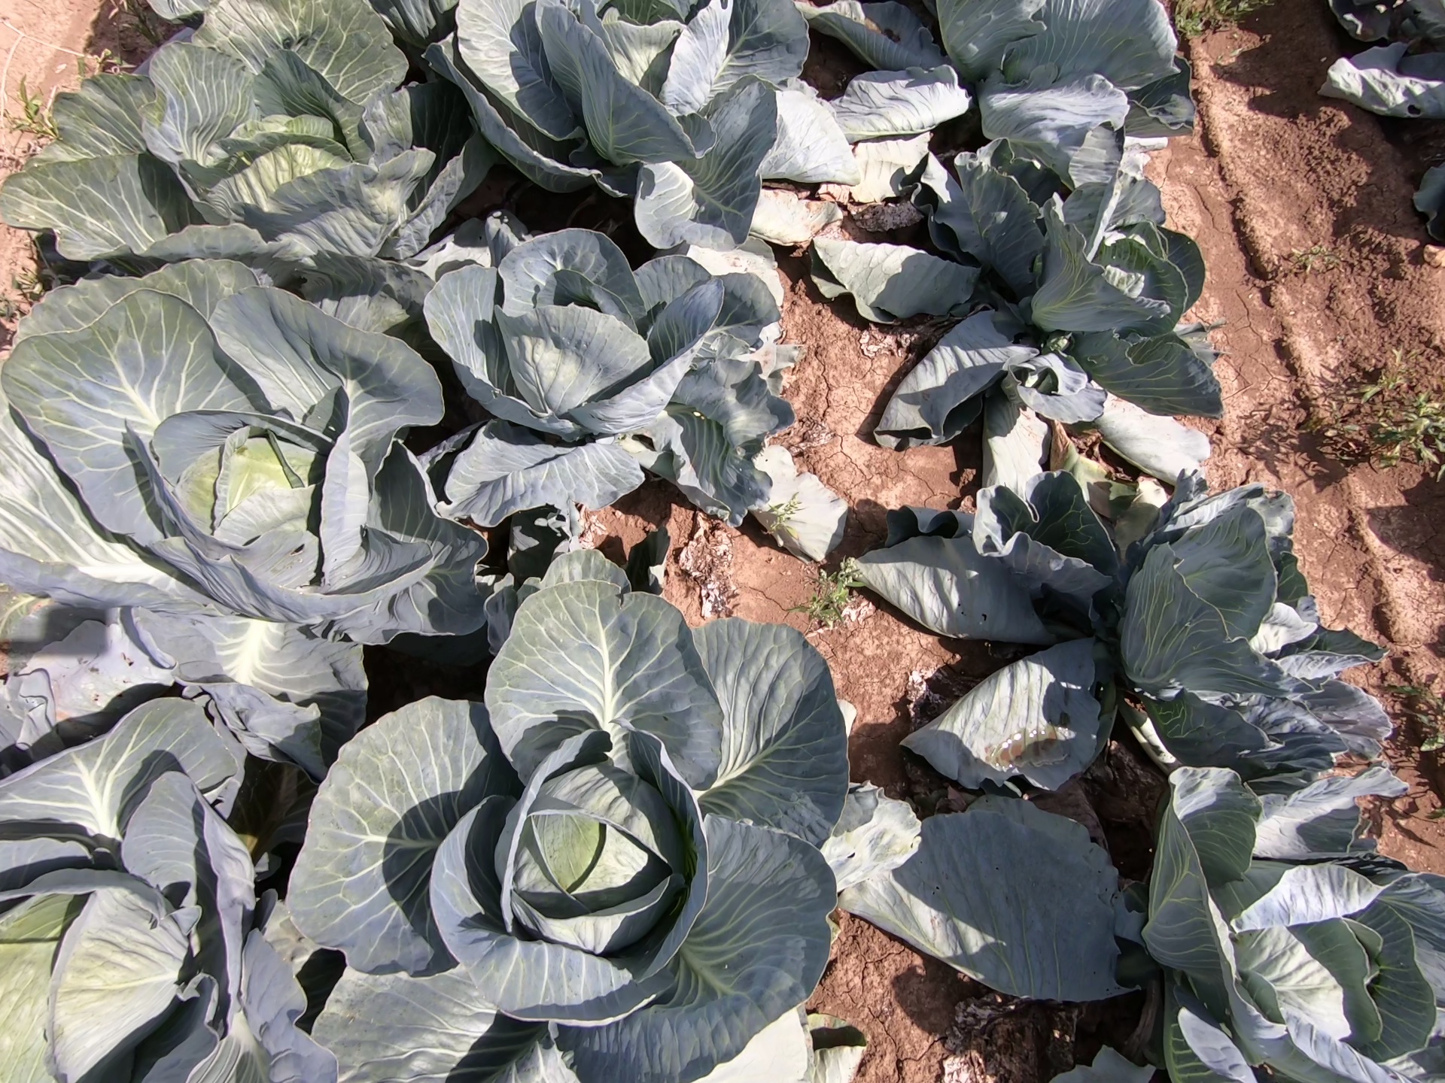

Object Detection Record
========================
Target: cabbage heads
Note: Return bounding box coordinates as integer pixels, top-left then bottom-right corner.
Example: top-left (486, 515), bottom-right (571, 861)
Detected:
top-left (1066, 226), bottom-right (1161, 326)
top-left (2, 867), bottom-right (195, 1081)
top-left (494, 766), bottom-right (685, 961)
top-left (1206, 871), bottom-right (1364, 1048)
top-left (173, 433), bottom-right (370, 581)
top-left (221, 113), bottom-right (356, 247)
top-left (519, 296), bottom-right (621, 412)
top-left (584, 20), bottom-right (696, 129)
